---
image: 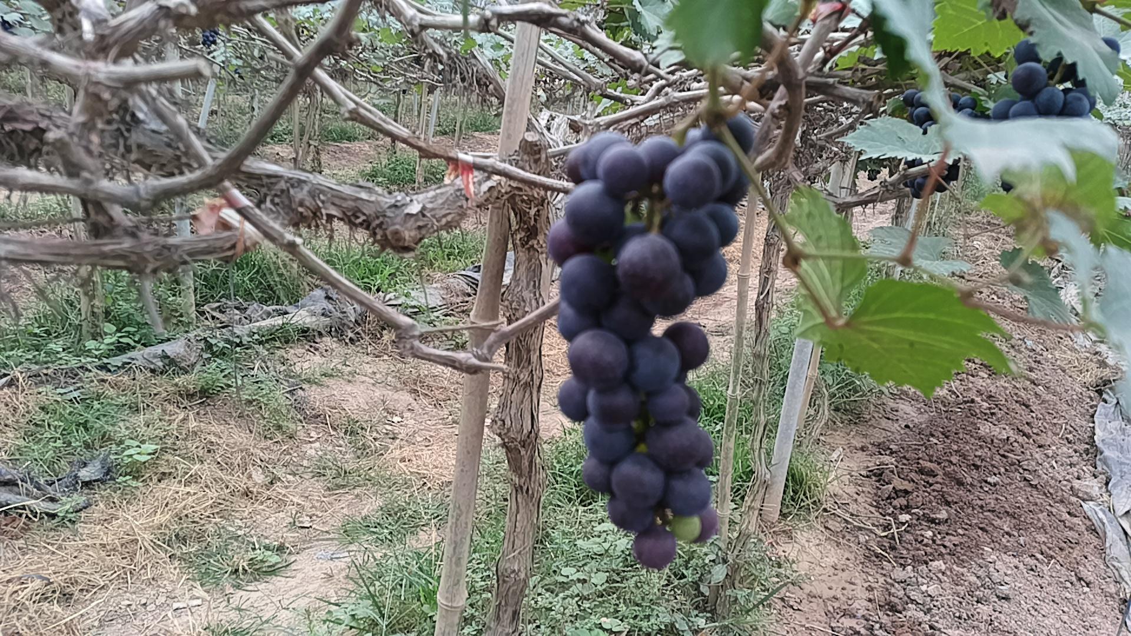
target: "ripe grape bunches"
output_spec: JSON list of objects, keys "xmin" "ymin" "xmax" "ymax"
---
[
  {"xmin": 901, "ymin": 90, "xmax": 978, "ymax": 200},
  {"xmin": 990, "ymin": 39, "xmax": 1096, "ymax": 194},
  {"xmin": 200, "ymin": 27, "xmax": 225, "ymax": 54}
]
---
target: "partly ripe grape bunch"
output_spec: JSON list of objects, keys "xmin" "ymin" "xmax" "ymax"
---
[{"xmin": 548, "ymin": 114, "xmax": 754, "ymax": 568}]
